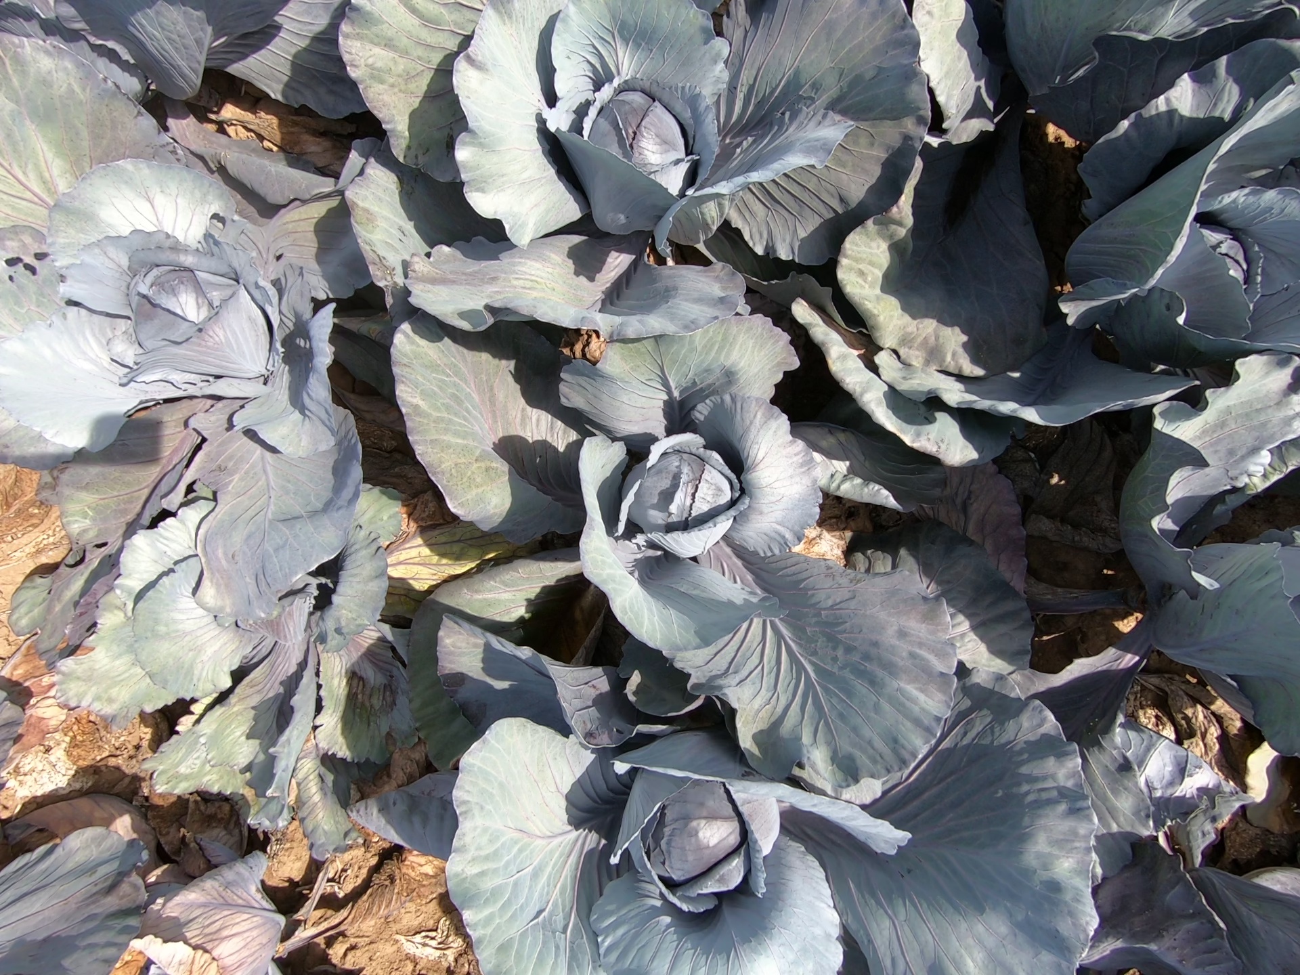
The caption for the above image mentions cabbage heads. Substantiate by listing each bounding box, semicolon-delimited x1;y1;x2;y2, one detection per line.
584;89;691;211
634;448;734;552
1156;223;1250;323
130;261;255;369
627;747;768;892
